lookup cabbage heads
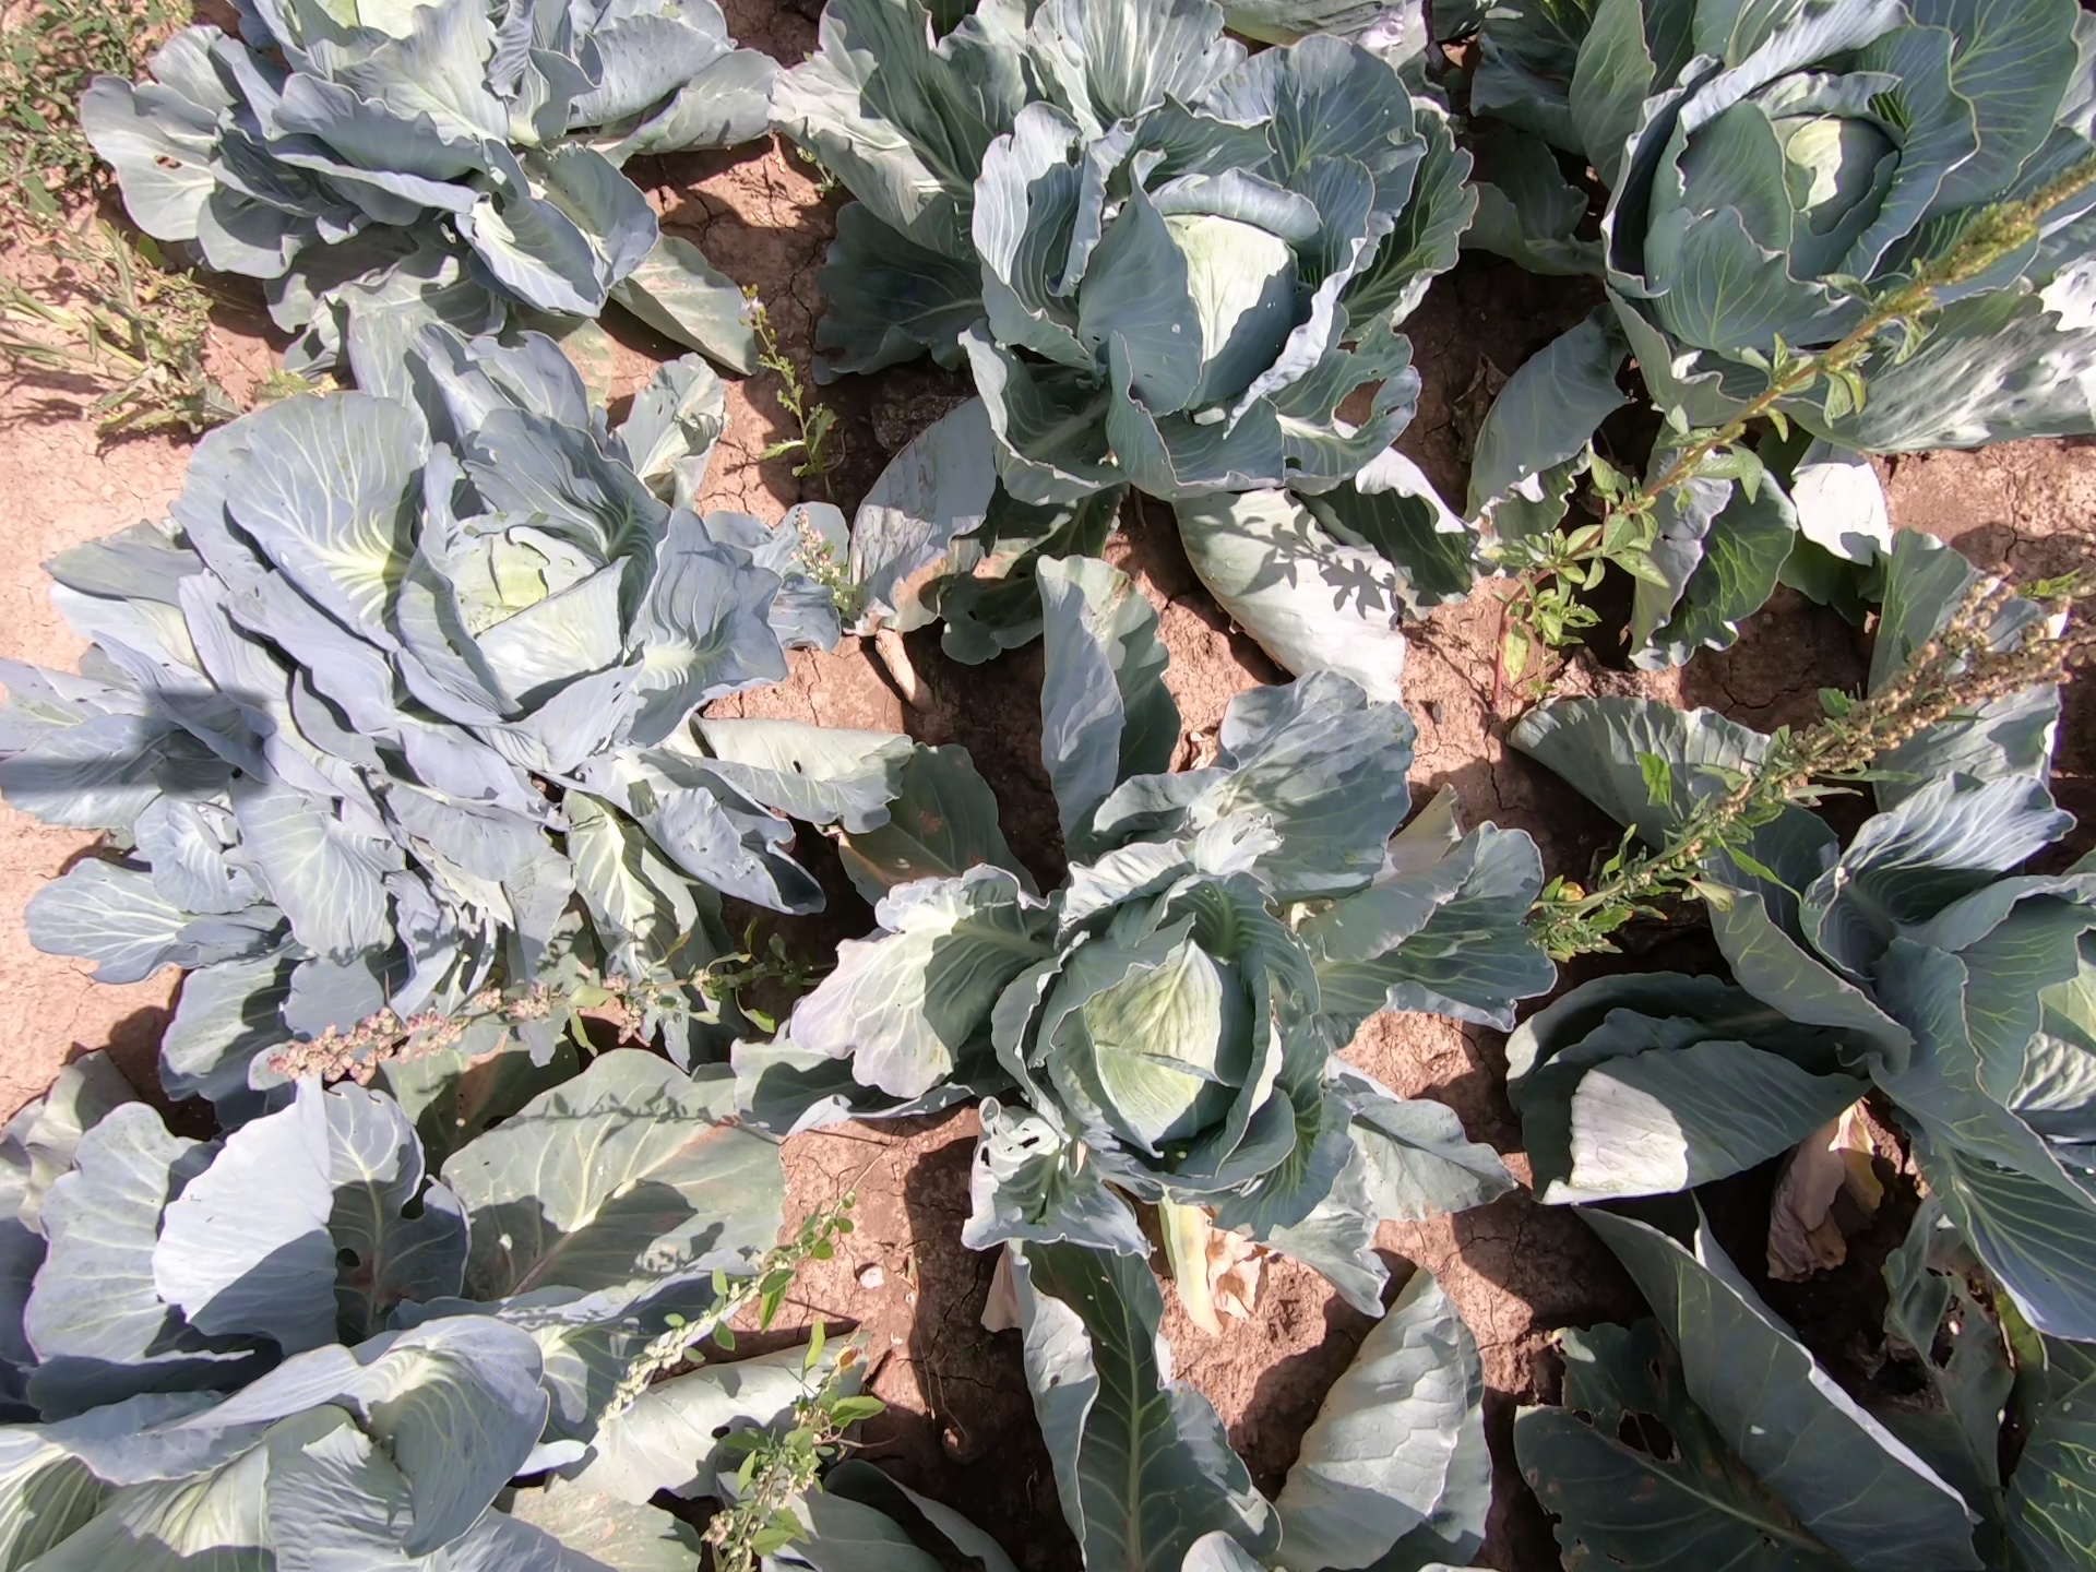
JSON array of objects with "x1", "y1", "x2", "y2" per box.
[
  {"x1": 1917, "y1": 904, "x2": 2093, "y2": 1135},
  {"x1": 70, "y1": 1418, "x2": 401, "y2": 1567},
  {"x1": 405, "y1": 516, "x2": 620, "y2": 726},
  {"x1": 1089, "y1": 175, "x2": 1299, "y2": 406},
  {"x1": 1044, "y1": 936, "x2": 1271, "y2": 1147},
  {"x1": 277, "y1": 2, "x2": 498, "y2": 152},
  {"x1": 1657, "y1": 86, "x2": 1910, "y2": 341}
]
